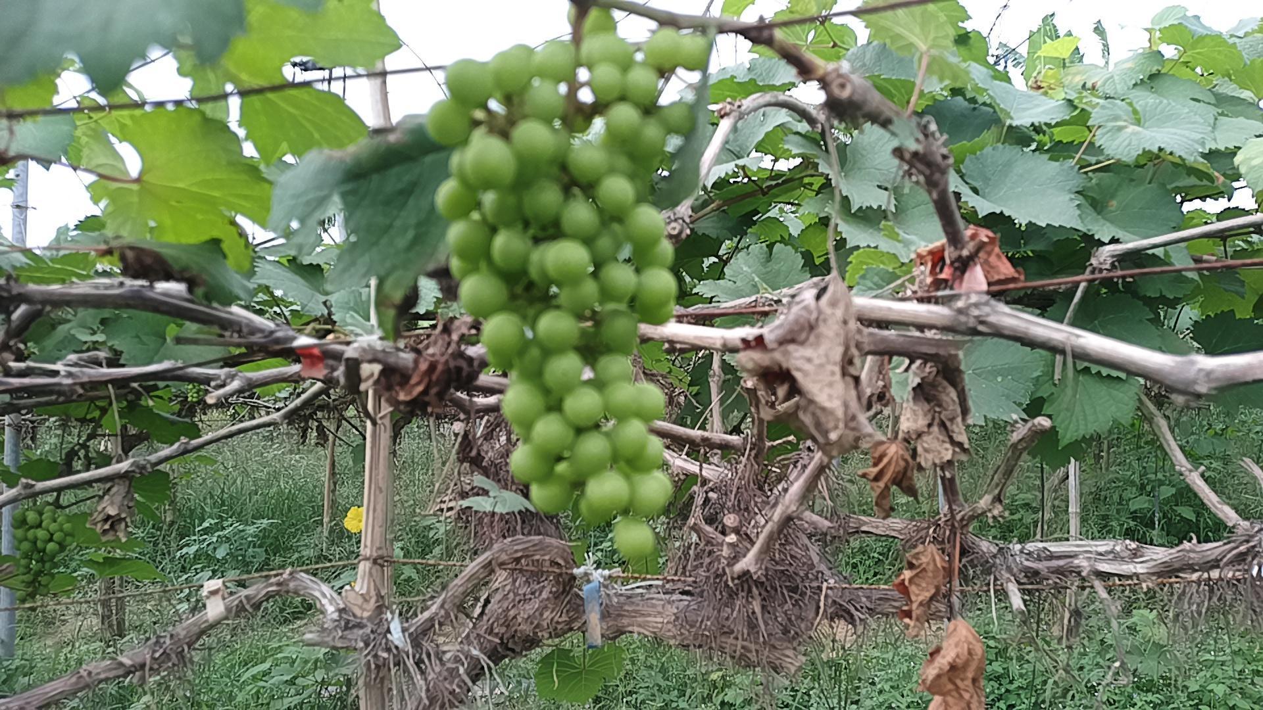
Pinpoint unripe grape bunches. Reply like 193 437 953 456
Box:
425 6 710 559
184 383 205 402
10 501 75 602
